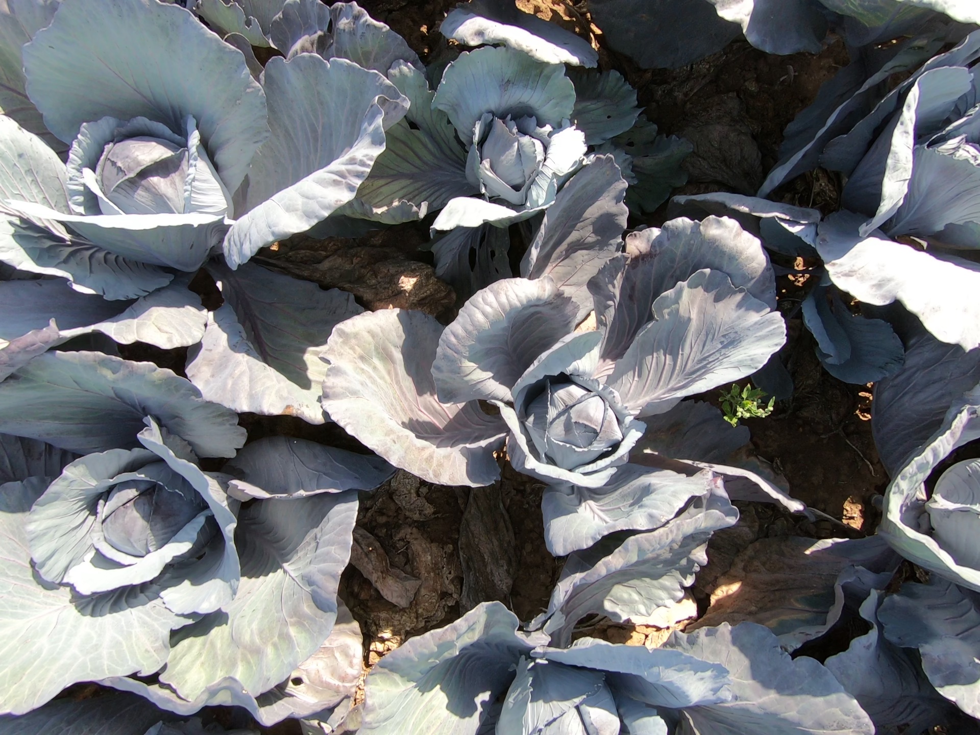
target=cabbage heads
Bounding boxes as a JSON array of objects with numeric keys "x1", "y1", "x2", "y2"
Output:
[
  {"x1": 488, "y1": 131, "x2": 546, "y2": 185},
  {"x1": 910, "y1": 140, "x2": 977, "y2": 224},
  {"x1": 99, "y1": 138, "x2": 208, "y2": 248},
  {"x1": 537, "y1": 383, "x2": 618, "y2": 462},
  {"x1": 927, "y1": 472, "x2": 978, "y2": 561},
  {"x1": 511, "y1": 658, "x2": 621, "y2": 734},
  {"x1": 102, "y1": 467, "x2": 200, "y2": 559}
]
